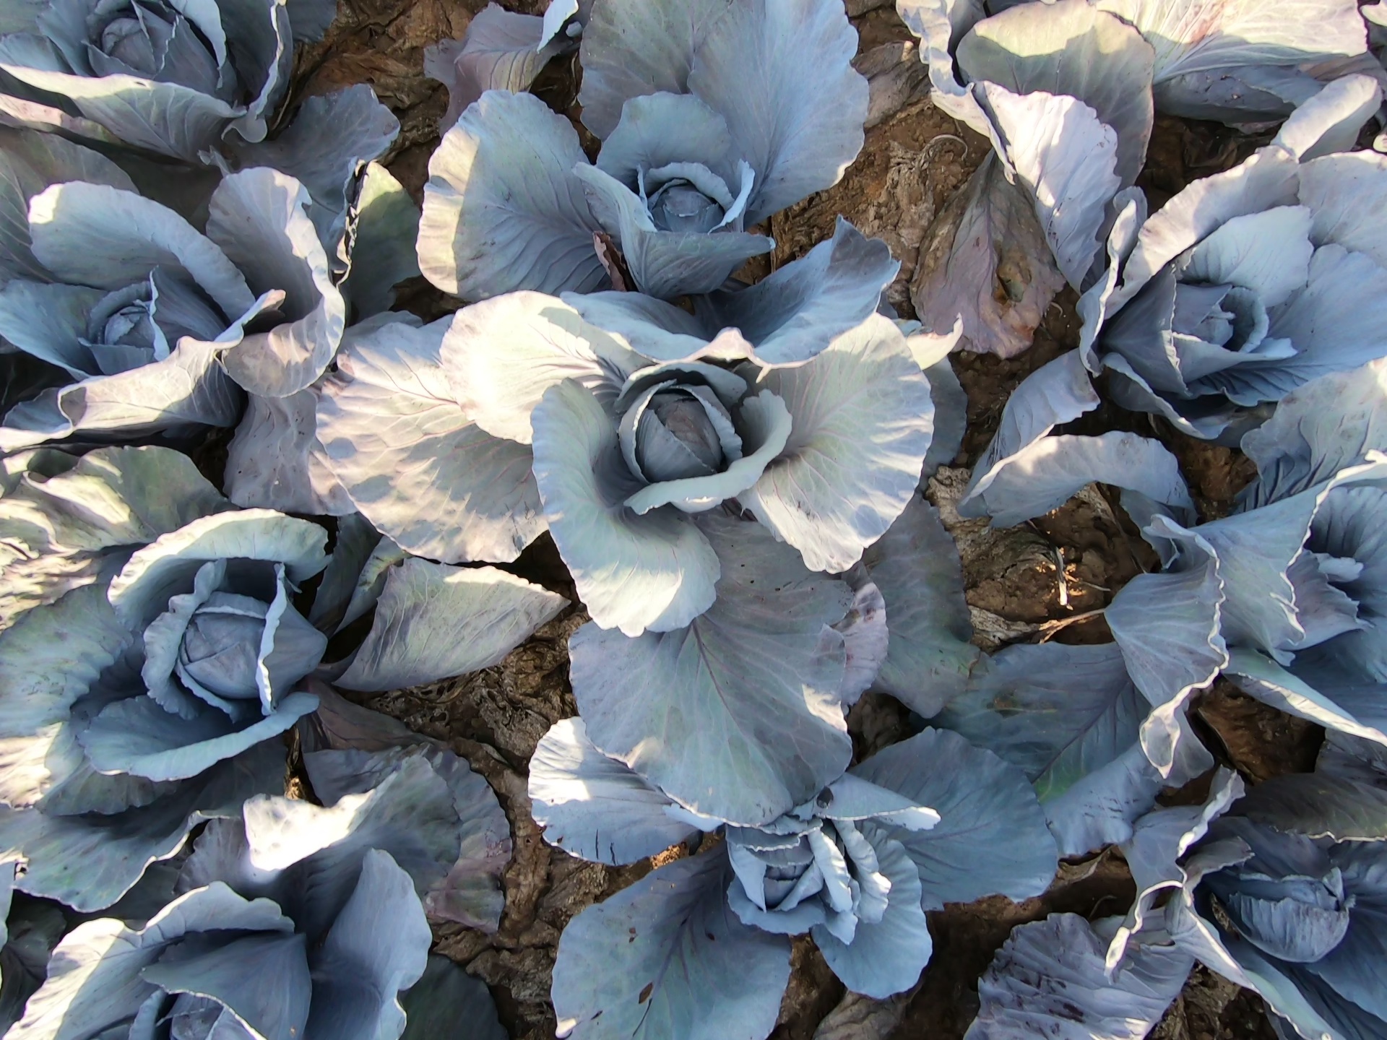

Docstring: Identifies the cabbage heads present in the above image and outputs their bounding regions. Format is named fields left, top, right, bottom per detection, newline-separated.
left=733, top=816, right=831, bottom=905
left=169, top=941, right=312, bottom=1038
left=100, top=15, right=209, bottom=110
left=629, top=390, right=728, bottom=485
left=173, top=593, right=290, bottom=699
left=1241, top=545, right=1338, bottom=650
left=104, top=297, right=225, bottom=403
left=642, top=180, right=727, bottom=269
left=1121, top=287, right=1235, bottom=373
left=1214, top=839, right=1347, bottom=959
